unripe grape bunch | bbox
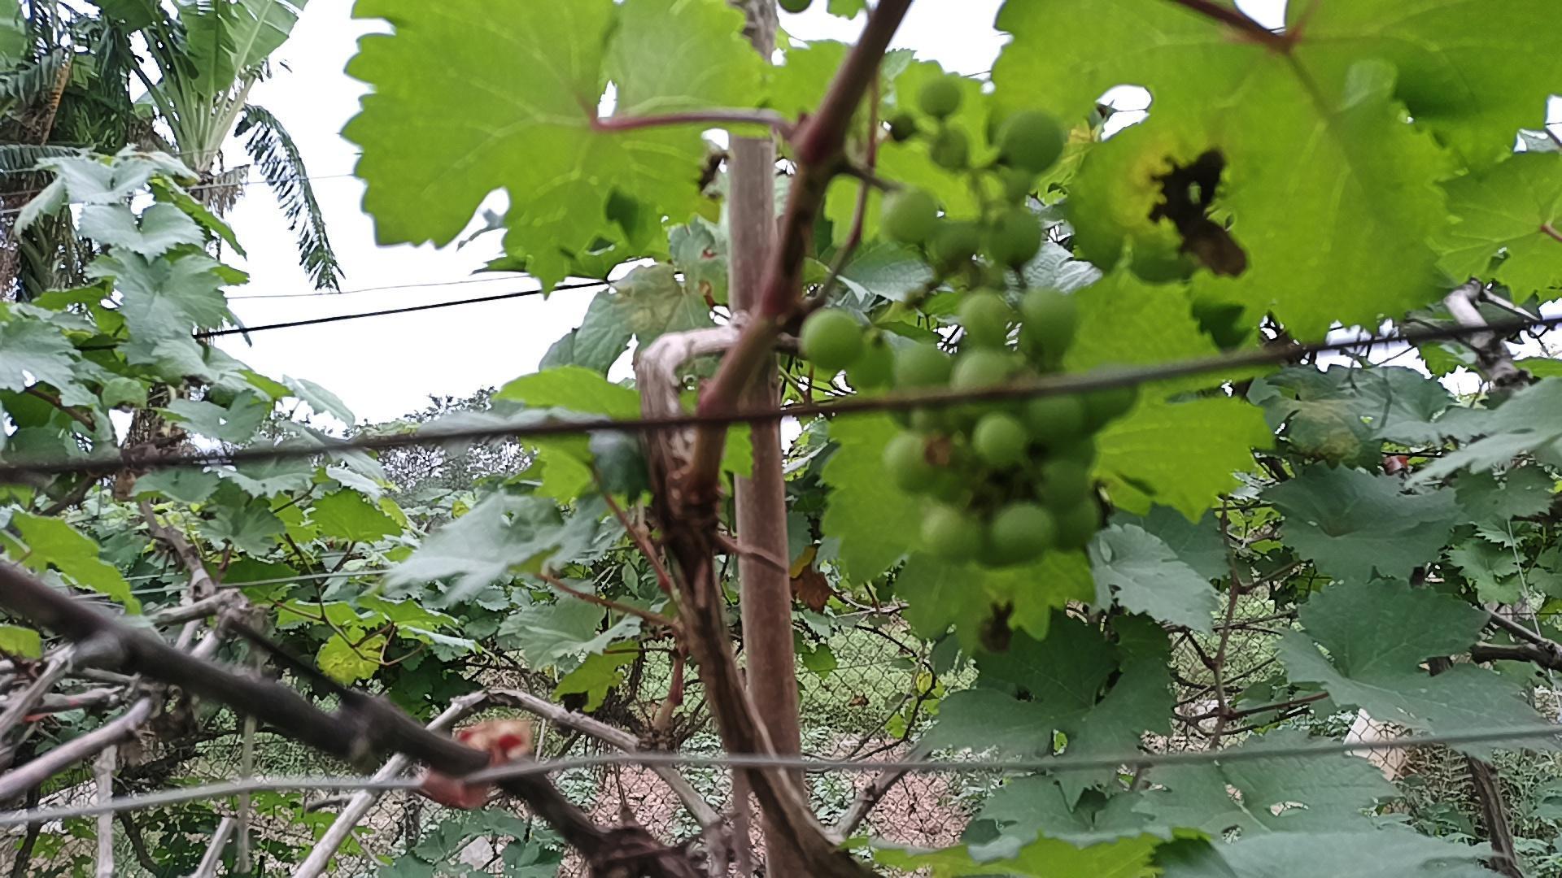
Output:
[803,76,1135,567]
